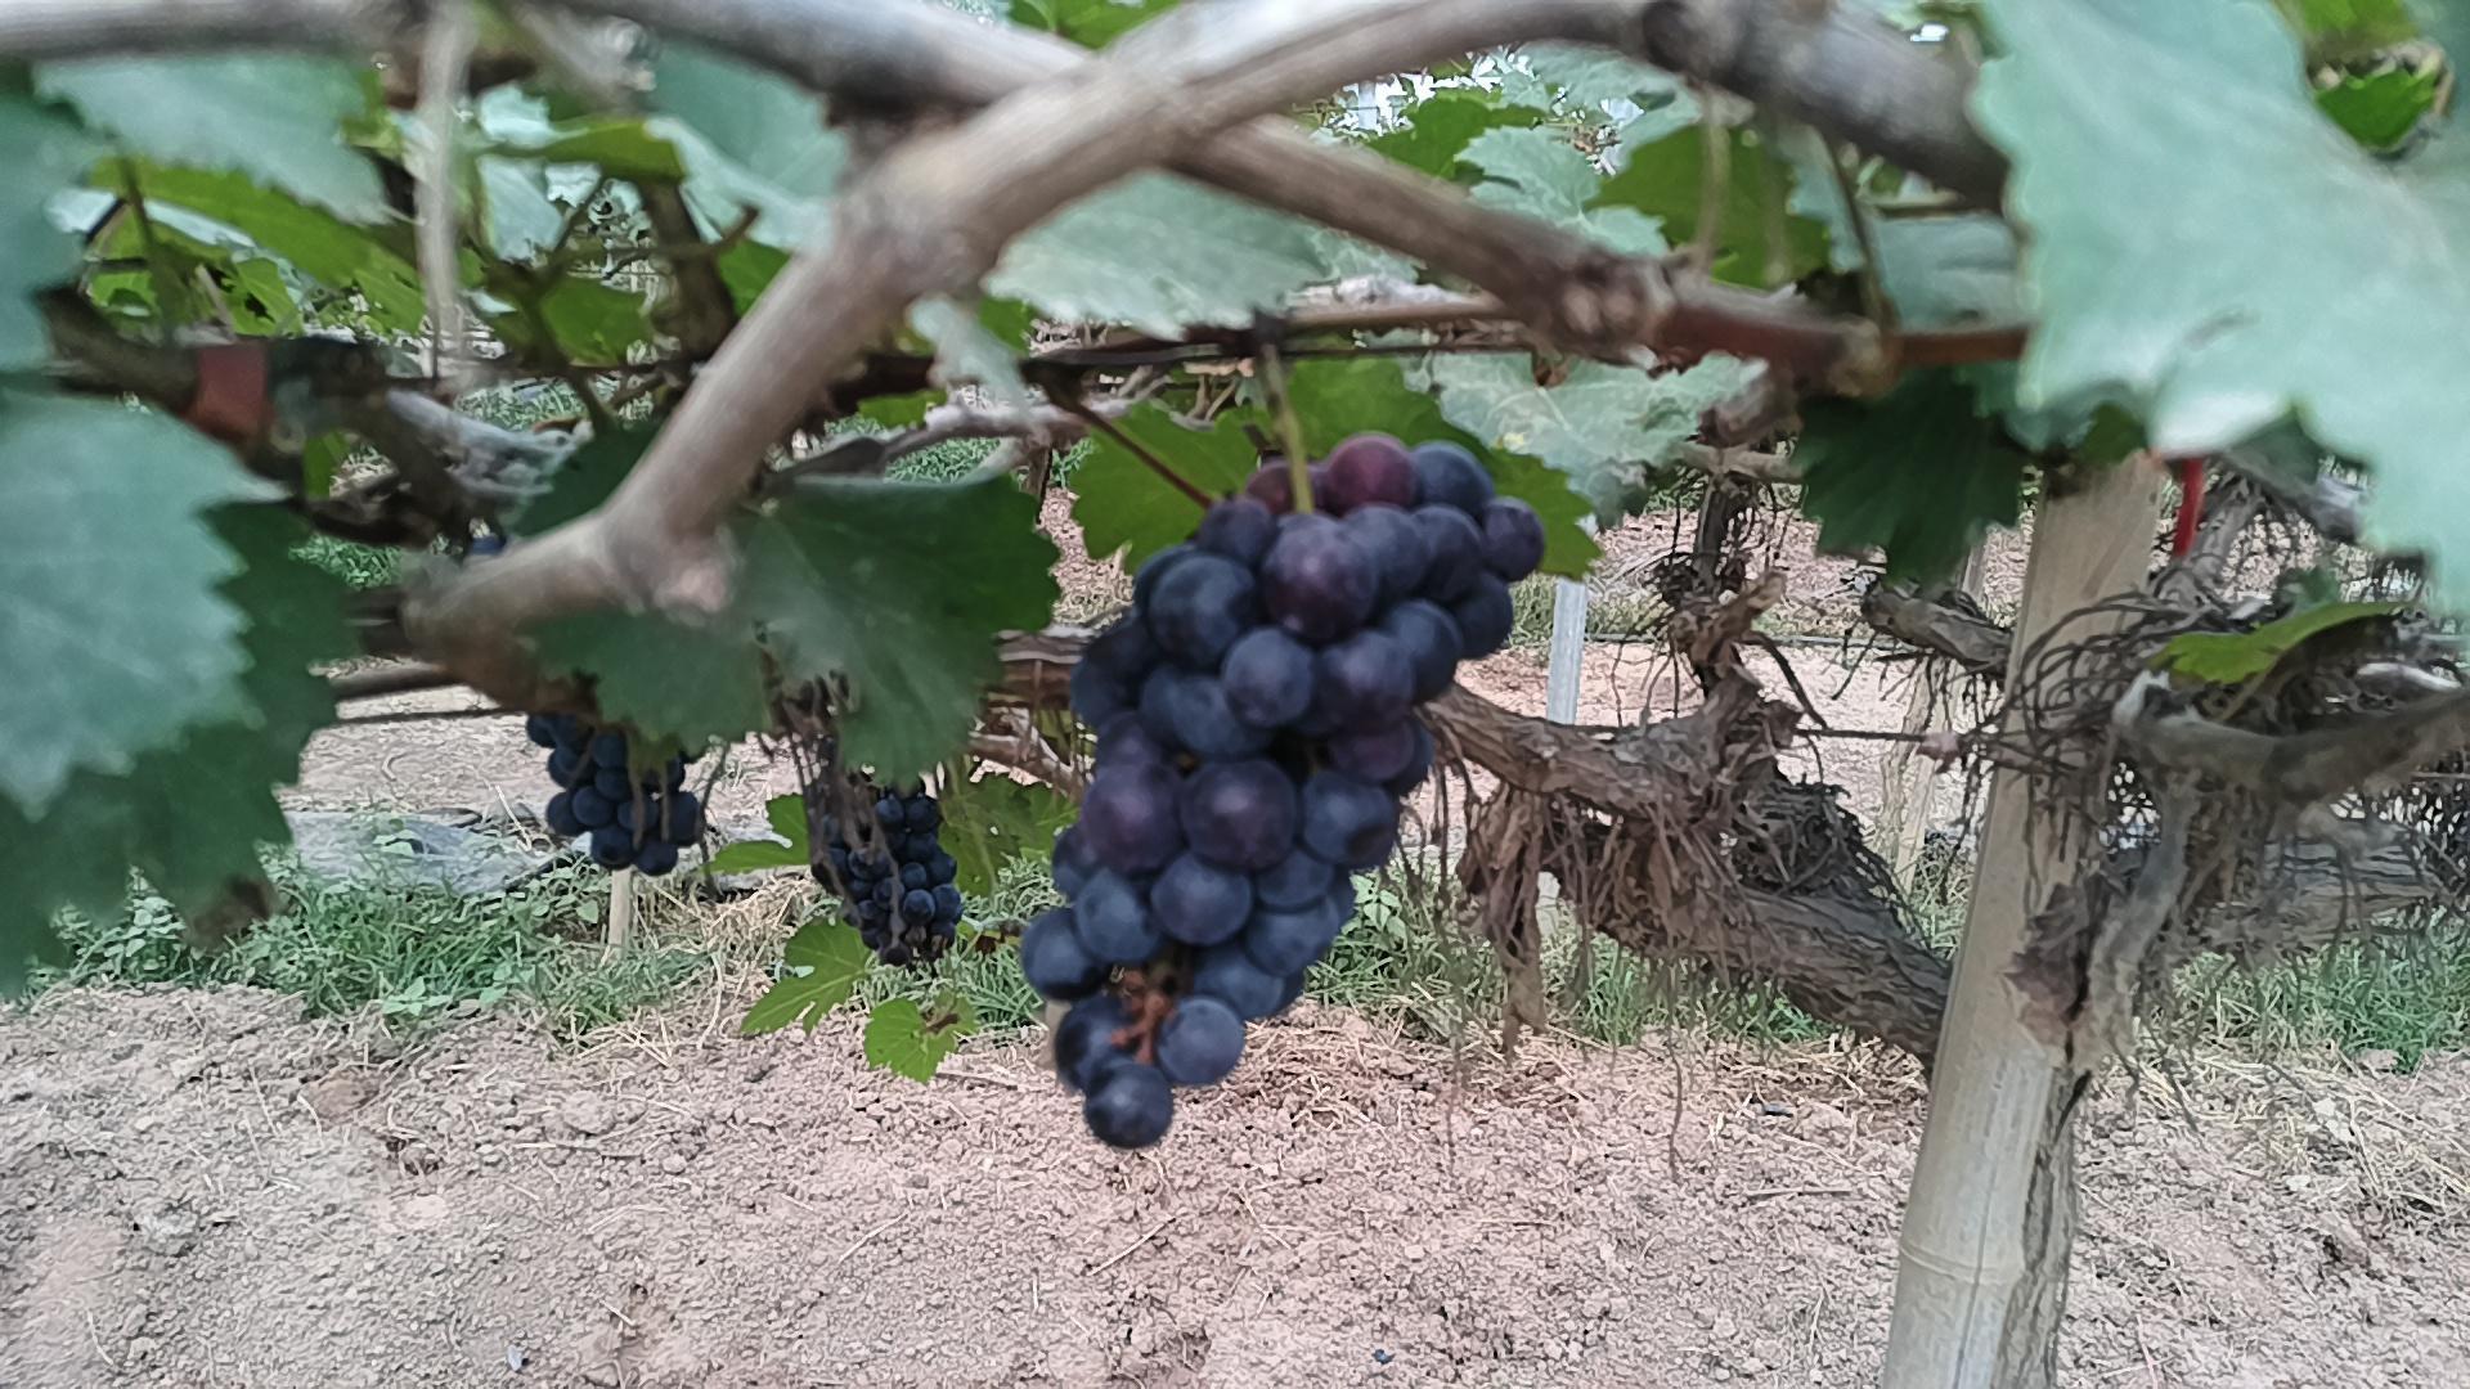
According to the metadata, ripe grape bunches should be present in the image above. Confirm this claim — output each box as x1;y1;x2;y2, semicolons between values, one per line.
527;715;706;876
1021;433;1542;1147
795;734;962;966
